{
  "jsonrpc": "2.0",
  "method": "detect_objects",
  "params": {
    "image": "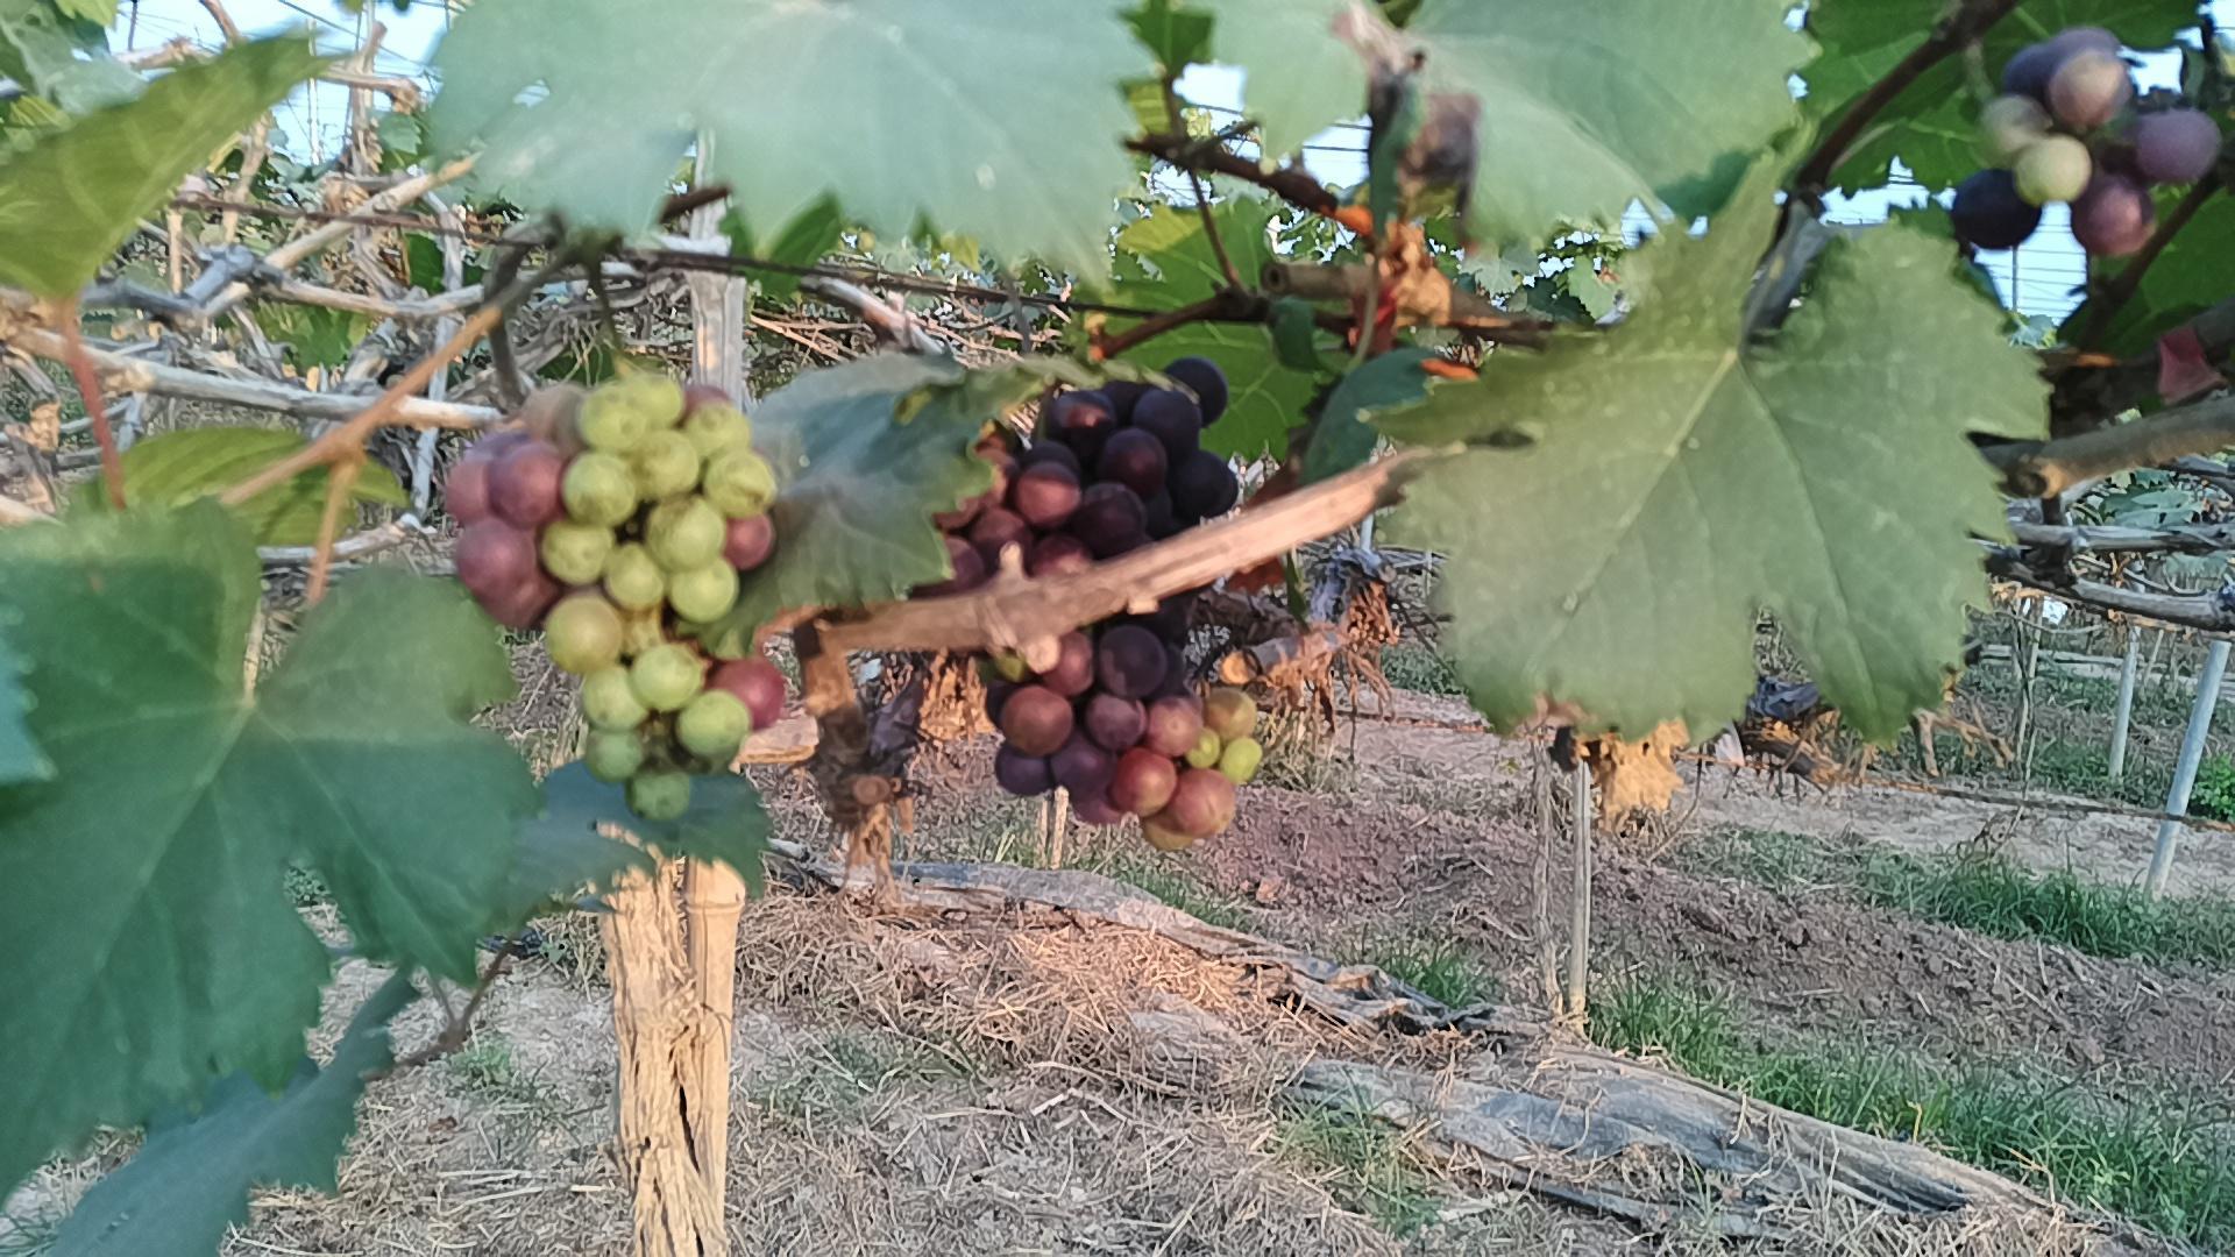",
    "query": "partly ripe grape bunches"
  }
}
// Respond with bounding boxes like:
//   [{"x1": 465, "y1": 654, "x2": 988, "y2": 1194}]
[
  {"x1": 1950, "y1": 26, "x2": 2225, "y2": 260},
  {"x1": 448, "y1": 371, "x2": 782, "y2": 817},
  {"x1": 907, "y1": 354, "x2": 1263, "y2": 852}
]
